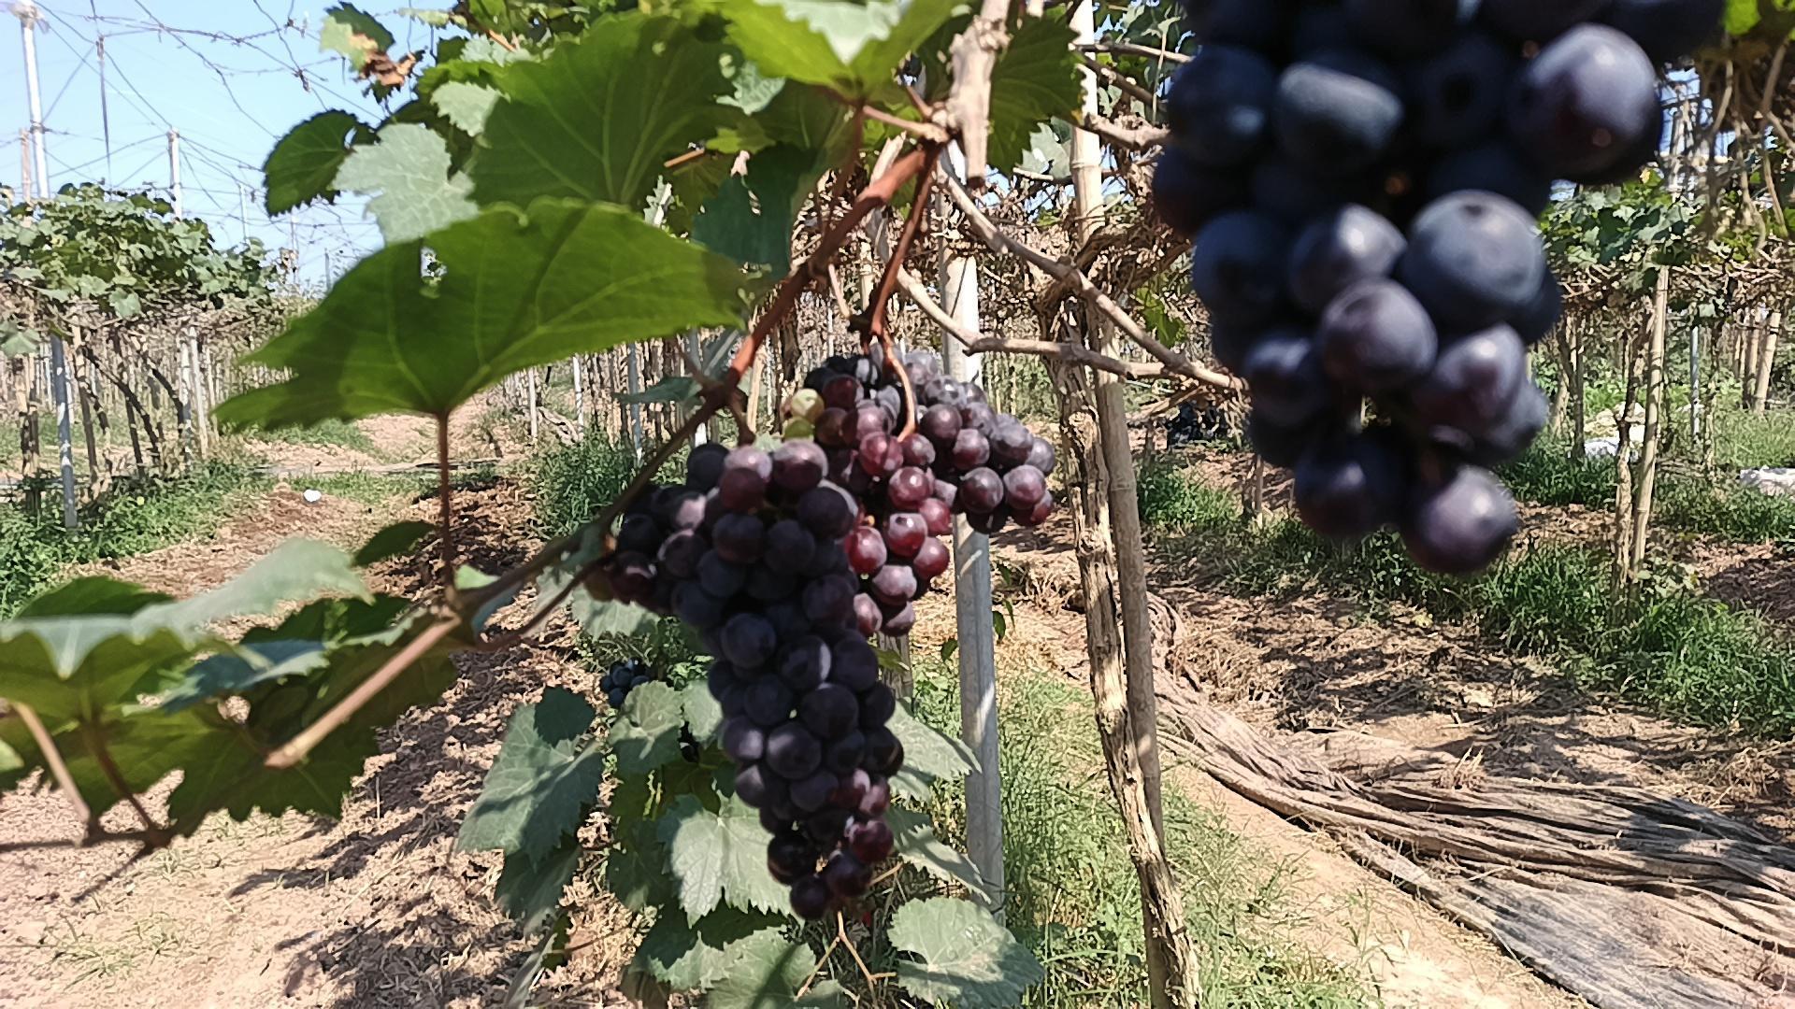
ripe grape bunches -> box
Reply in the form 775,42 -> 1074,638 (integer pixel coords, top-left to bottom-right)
1153,0 -> 1722,572
614,344 -> 1052,918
